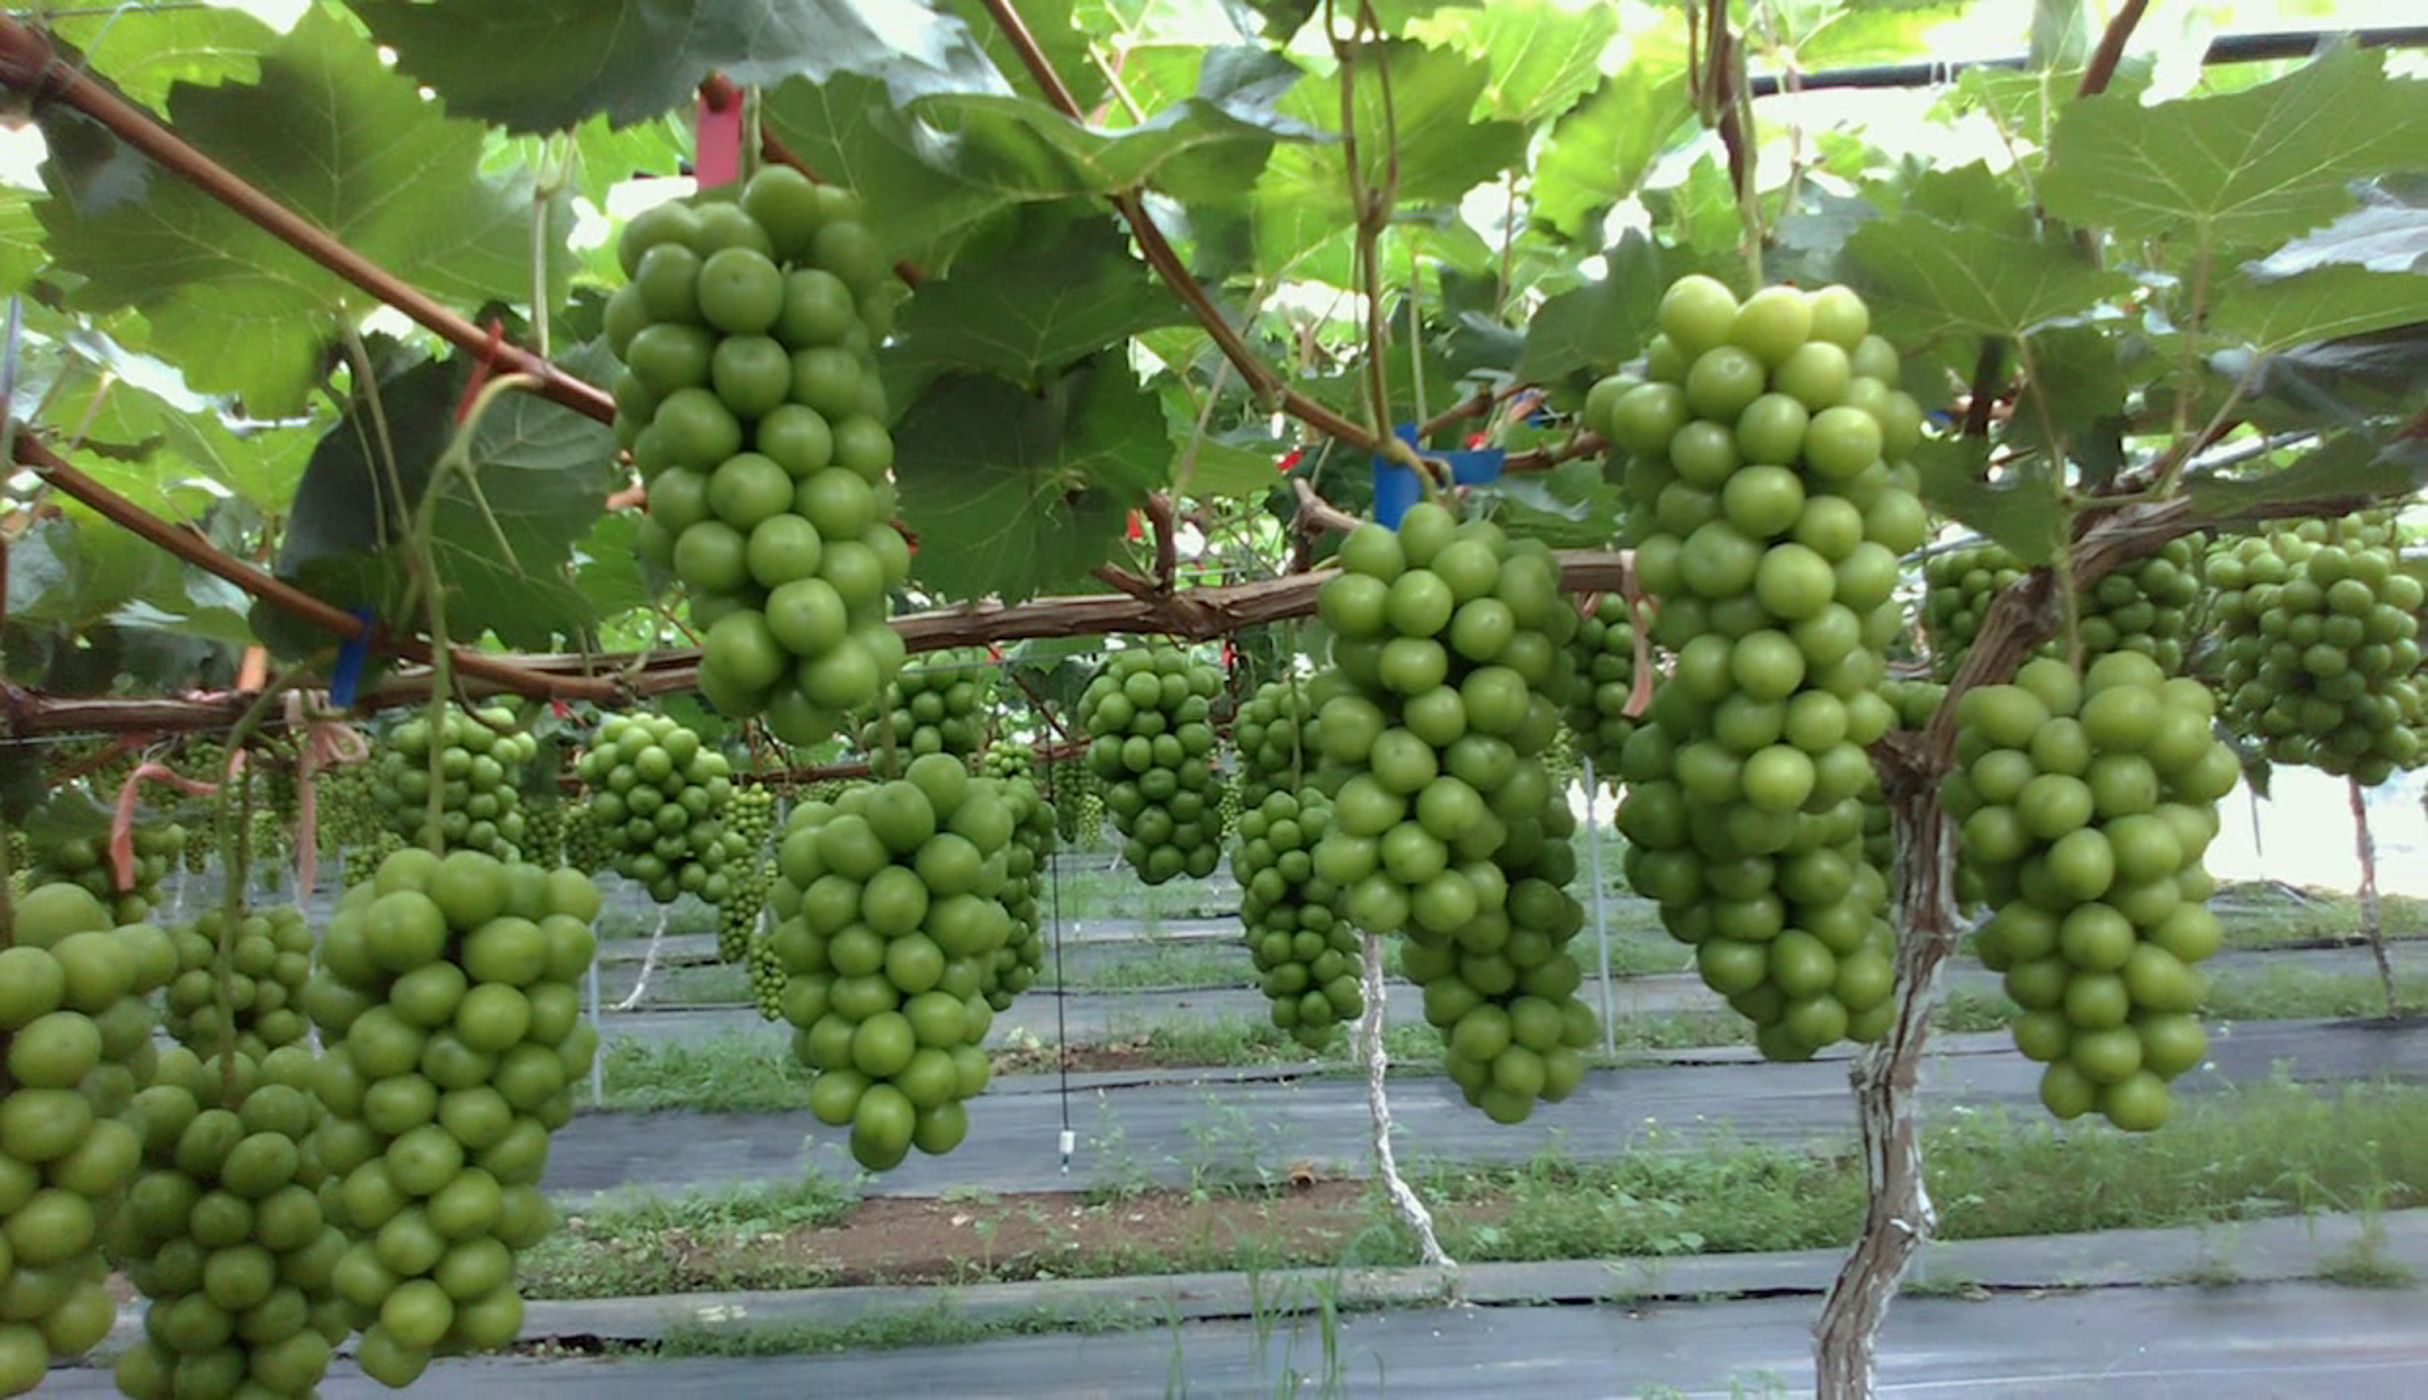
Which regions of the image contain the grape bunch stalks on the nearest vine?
[214,646,339,1114]
[1735,29,1765,294]
[745,86,763,173]
[416,373,539,857]
[1393,439,1436,502]
[877,690,901,782]
[2058,552,2084,677]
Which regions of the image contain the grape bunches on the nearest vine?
[1305,500,1580,935]
[1401,776,1599,1124]
[4,883,179,1396]
[105,1044,364,1398]
[1615,723,1895,1066]
[300,848,603,1388]
[767,751,1012,1171]
[601,163,910,751]
[1582,274,1926,854]
[1936,649,2239,1134]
